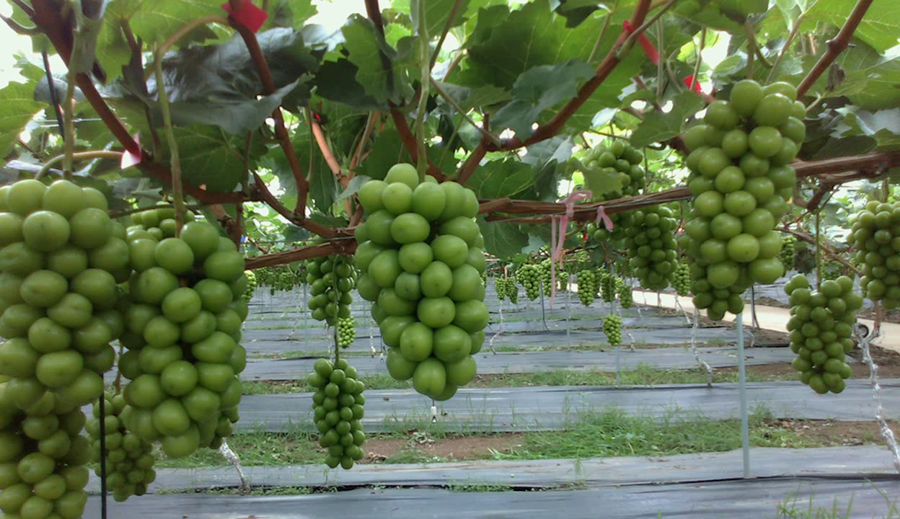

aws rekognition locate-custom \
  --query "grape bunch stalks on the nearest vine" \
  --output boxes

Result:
[154,15,231,237]
[63,70,74,182]
[416,0,429,184]
[332,254,340,369]
[744,19,756,81]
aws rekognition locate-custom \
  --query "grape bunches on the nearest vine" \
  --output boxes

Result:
[681,79,806,288]
[353,162,490,402]
[1,376,92,518]
[115,222,248,458]
[0,179,131,408]
[307,358,366,469]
